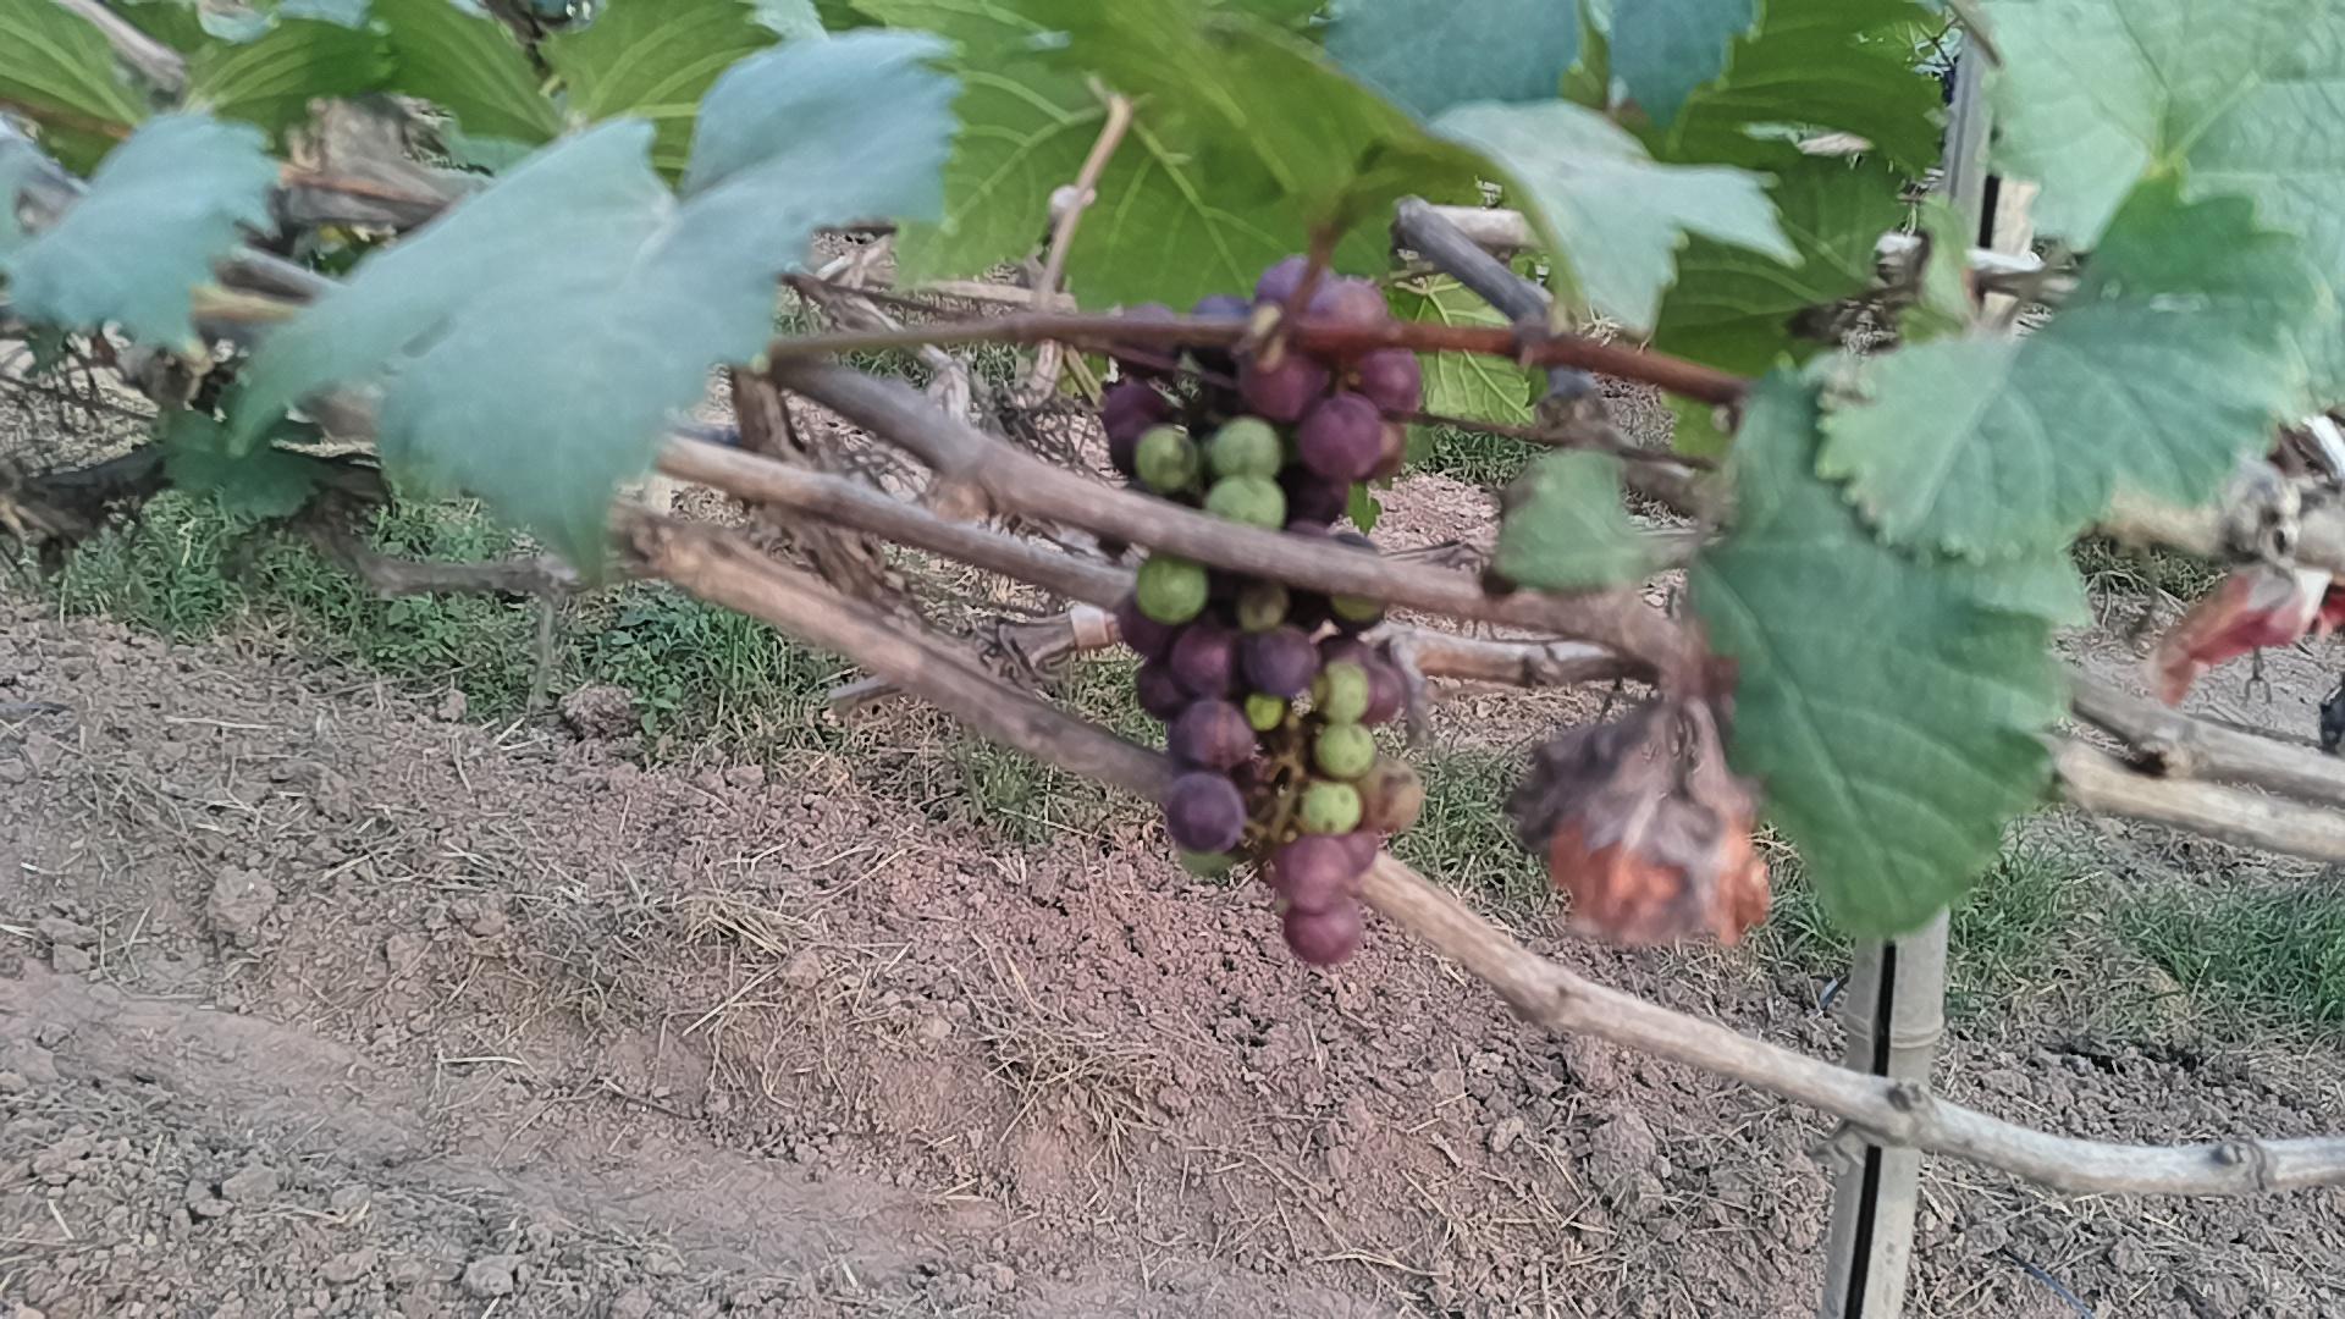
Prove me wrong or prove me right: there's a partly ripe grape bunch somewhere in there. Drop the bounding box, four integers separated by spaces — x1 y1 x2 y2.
1100 256 1420 964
